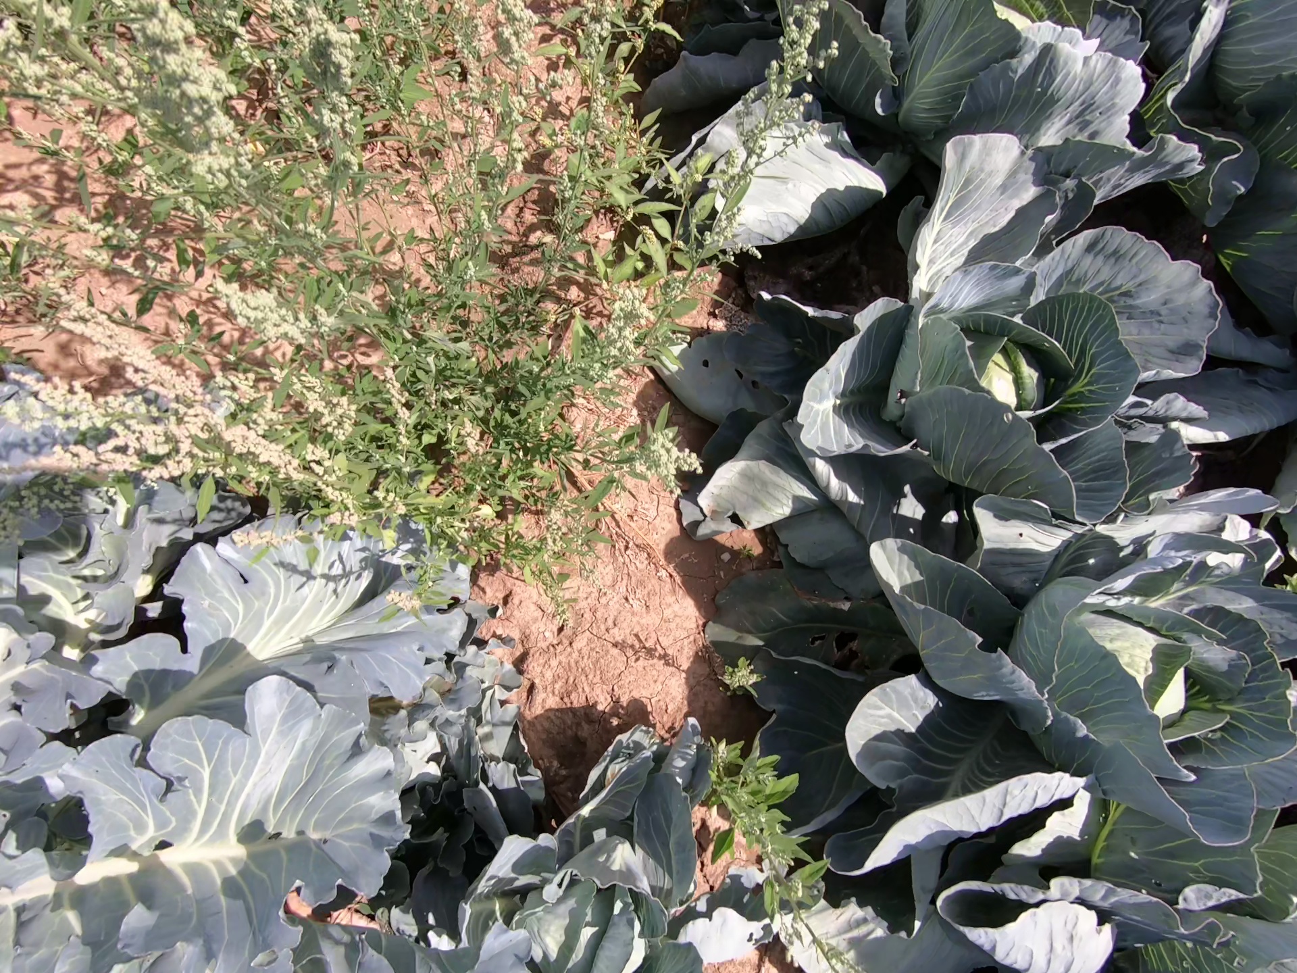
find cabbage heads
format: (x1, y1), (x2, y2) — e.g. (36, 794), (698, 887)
(922, 327), (1046, 433)
(1034, 582), (1190, 739)
(905, 1), (1070, 142)
(522, 877), (651, 971)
